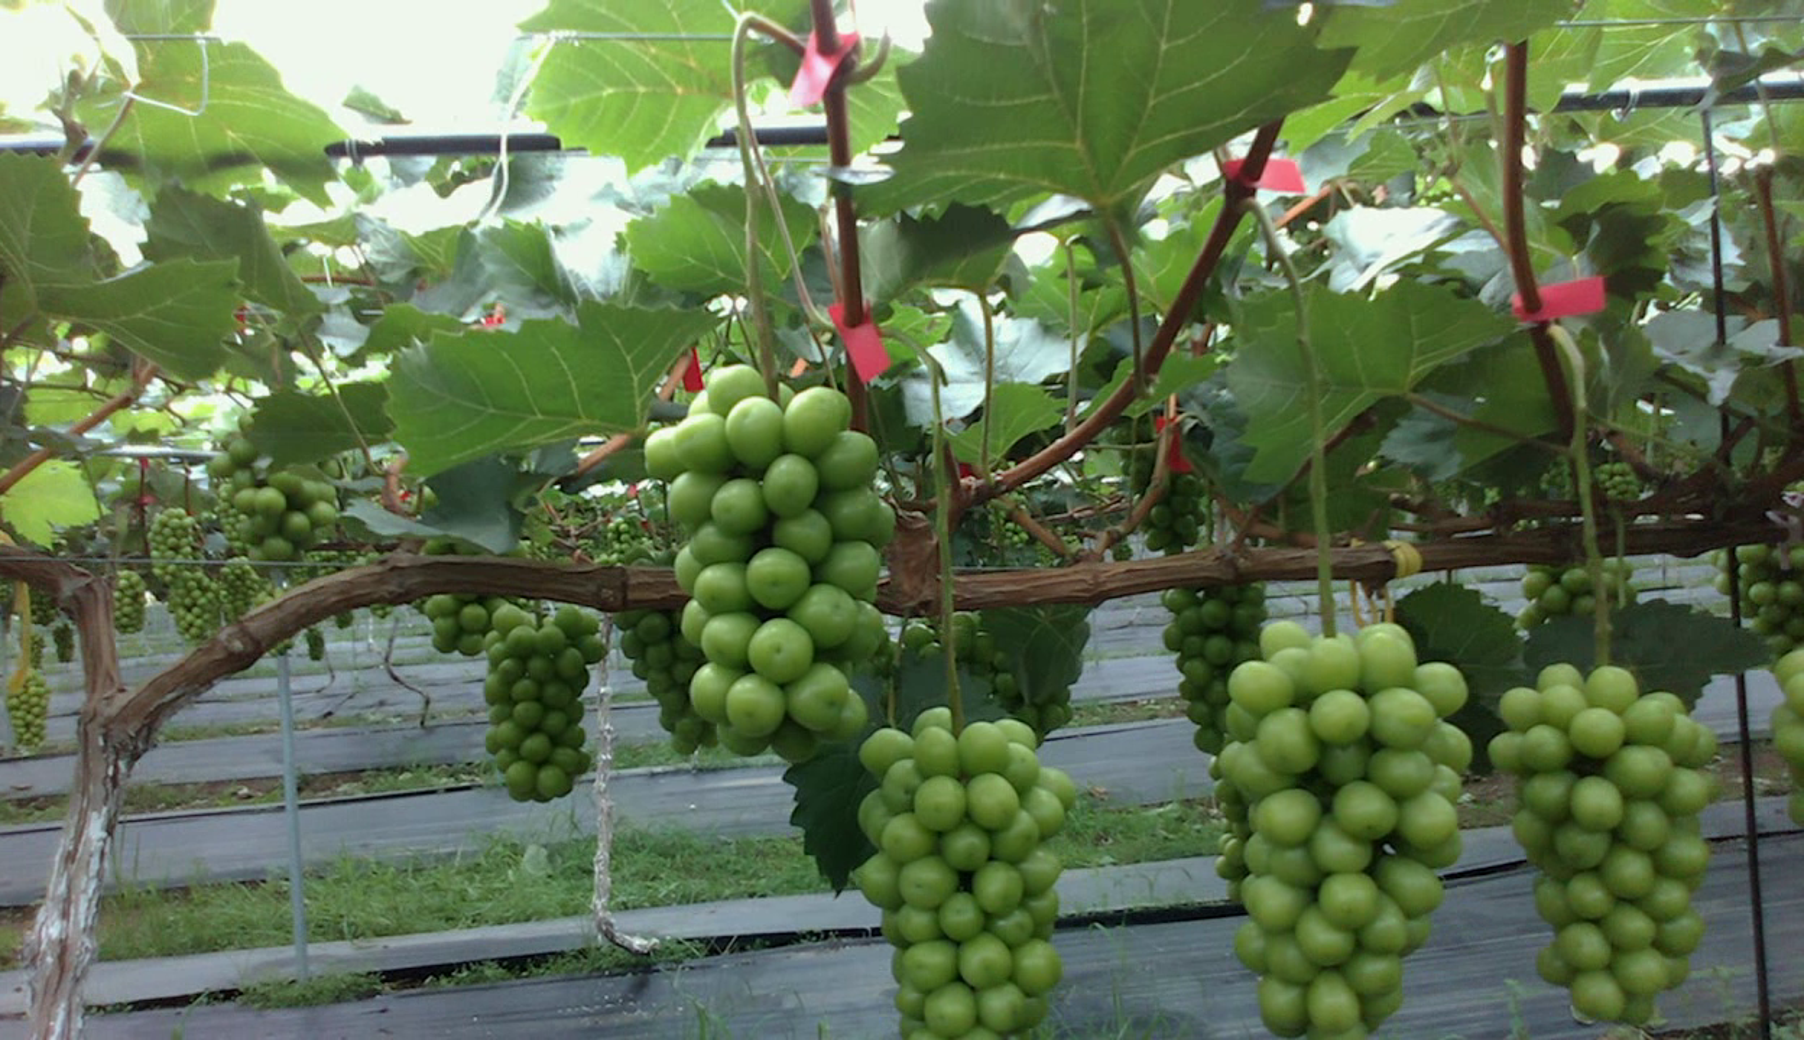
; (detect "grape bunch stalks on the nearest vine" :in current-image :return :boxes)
[888,325,966,740]
[1250,198,1336,637]
[730,10,807,404]
[1554,329,1610,666]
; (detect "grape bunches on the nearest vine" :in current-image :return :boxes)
[645,363,896,763]
[1486,662,1722,1024]
[1220,621,1470,1039]
[854,709,1075,1039]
